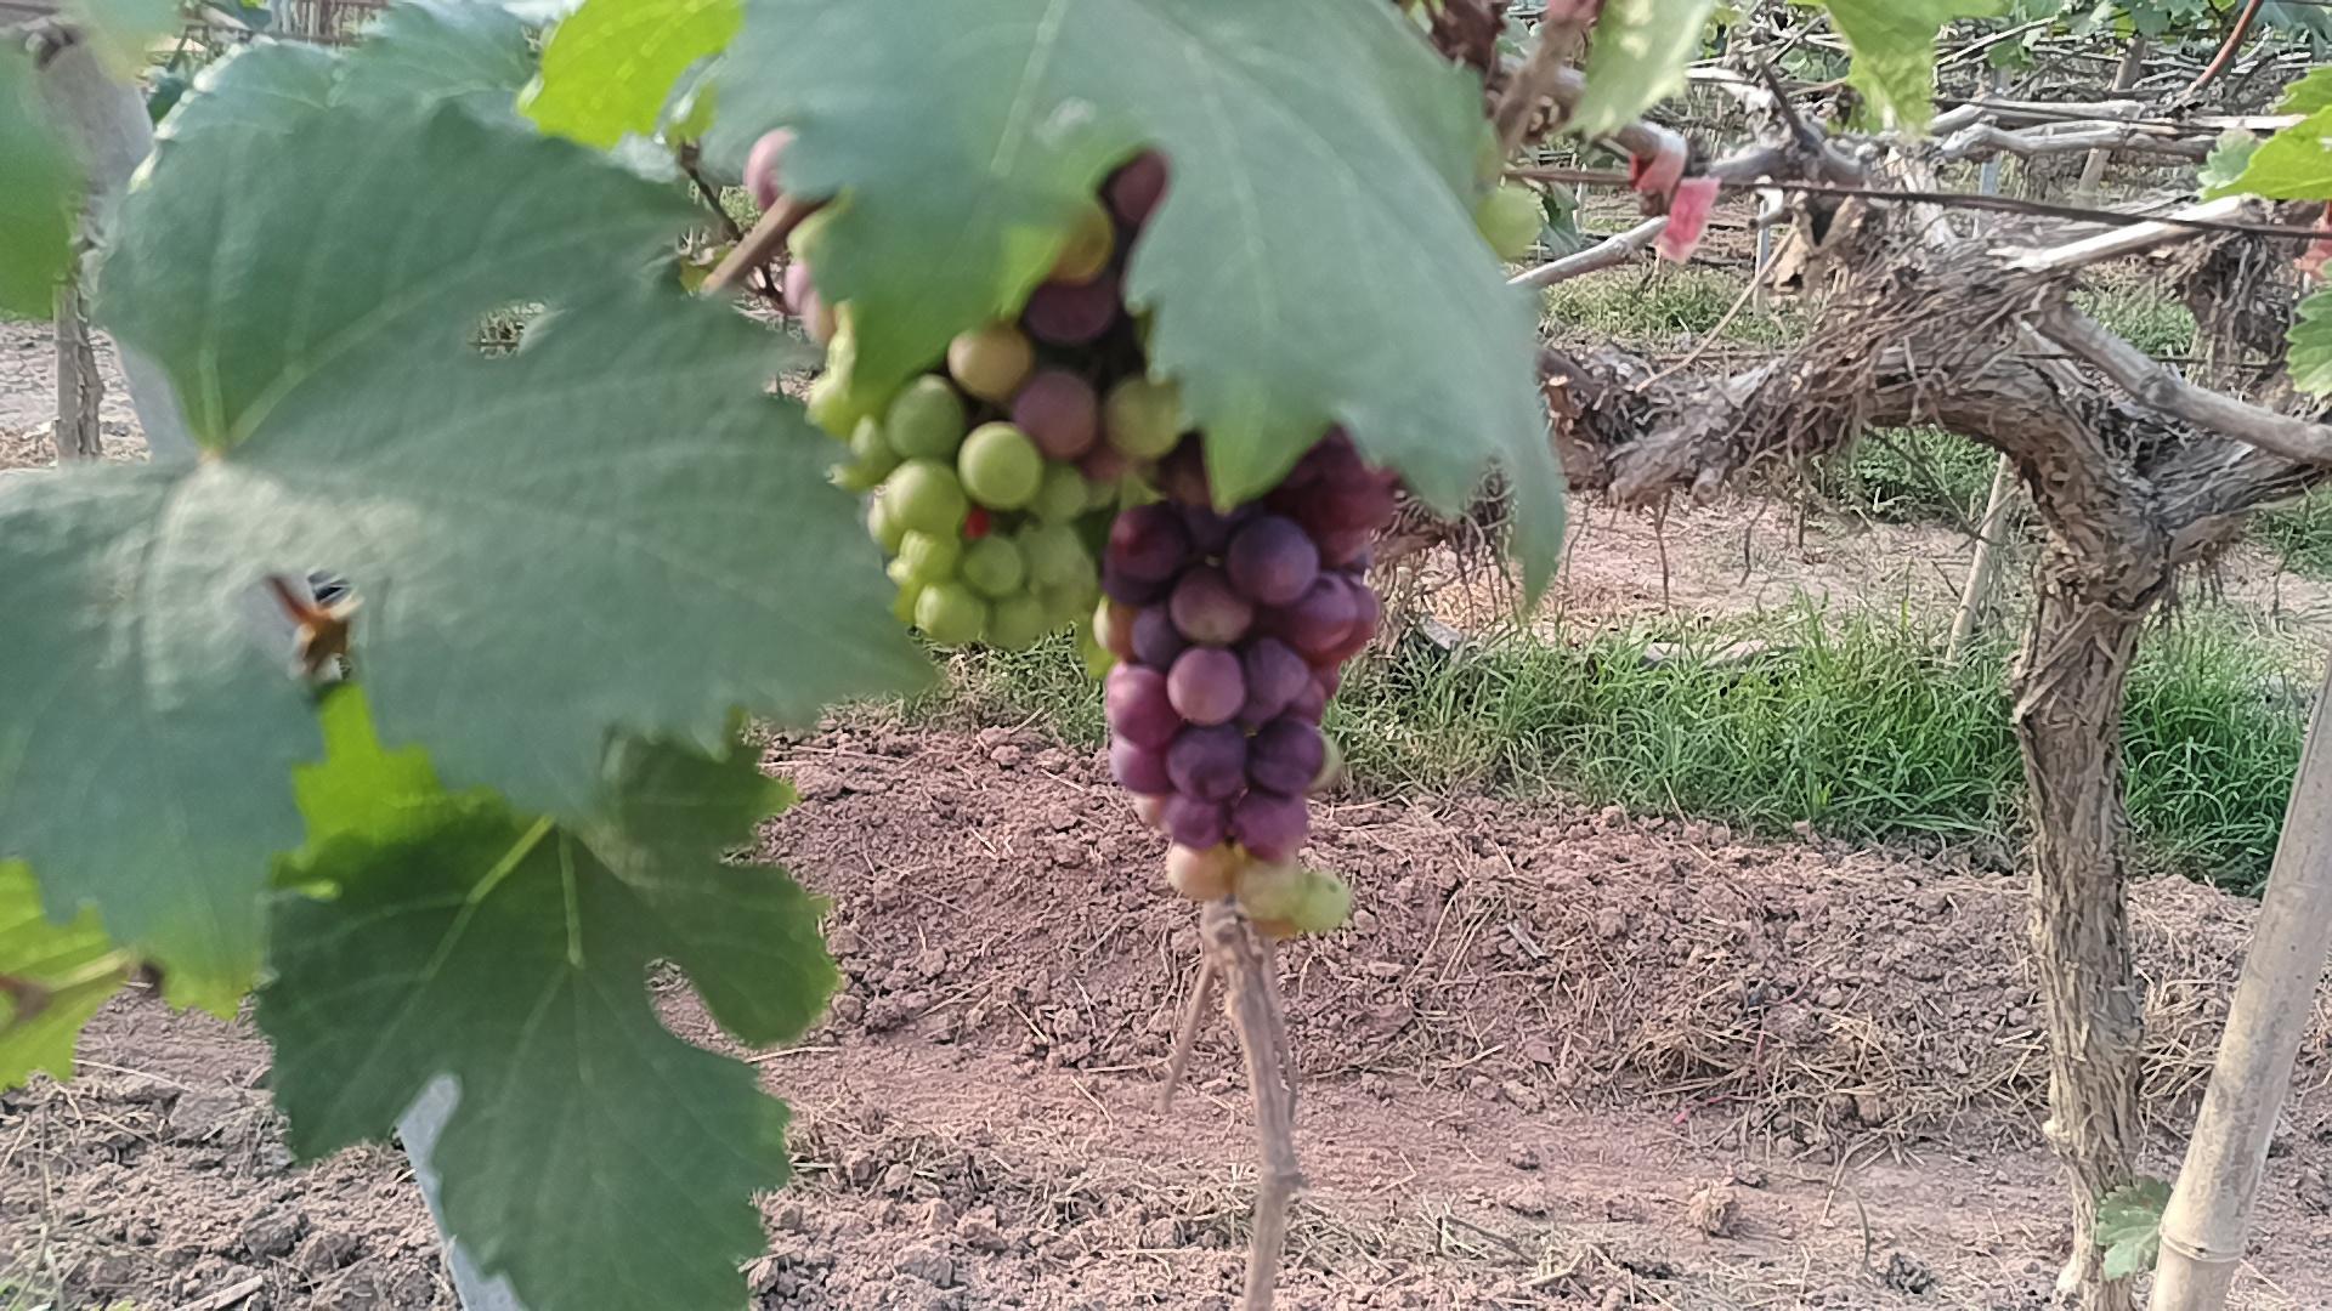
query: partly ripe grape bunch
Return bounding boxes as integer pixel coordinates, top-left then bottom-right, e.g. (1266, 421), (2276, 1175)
(782, 152), (1397, 931)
